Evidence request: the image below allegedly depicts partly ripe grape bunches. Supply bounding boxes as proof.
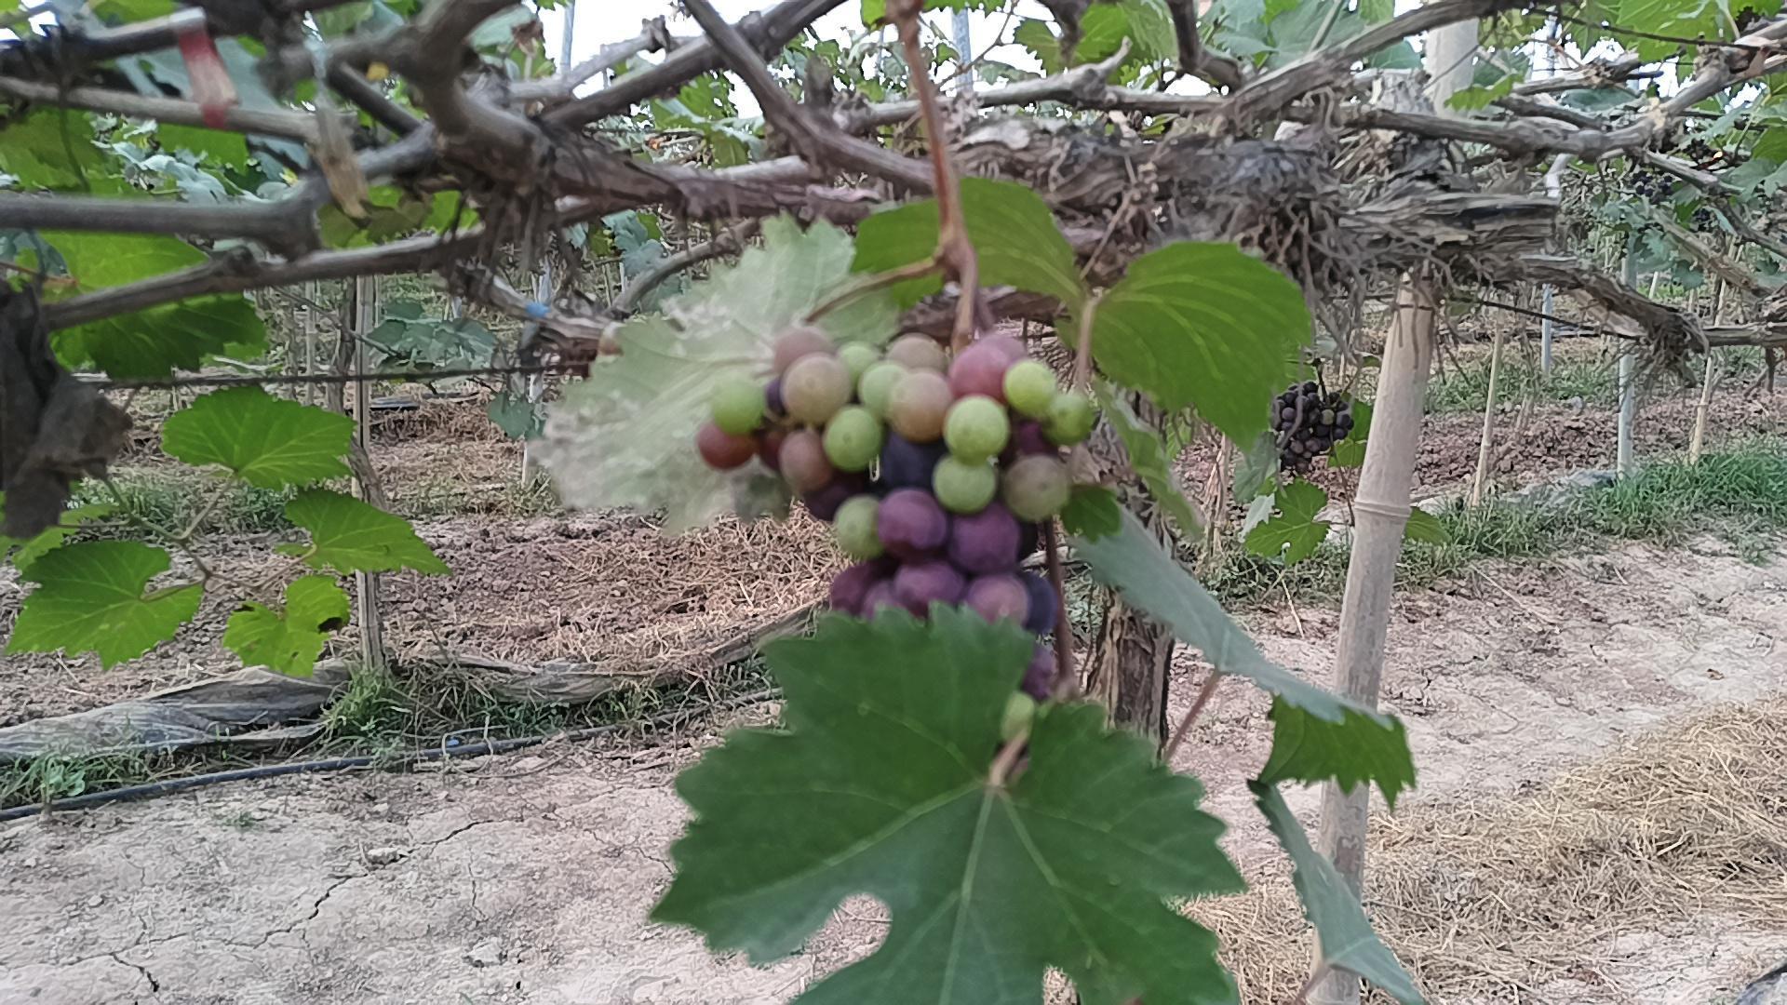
[1270,379,1353,471]
[697,326,1092,746]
